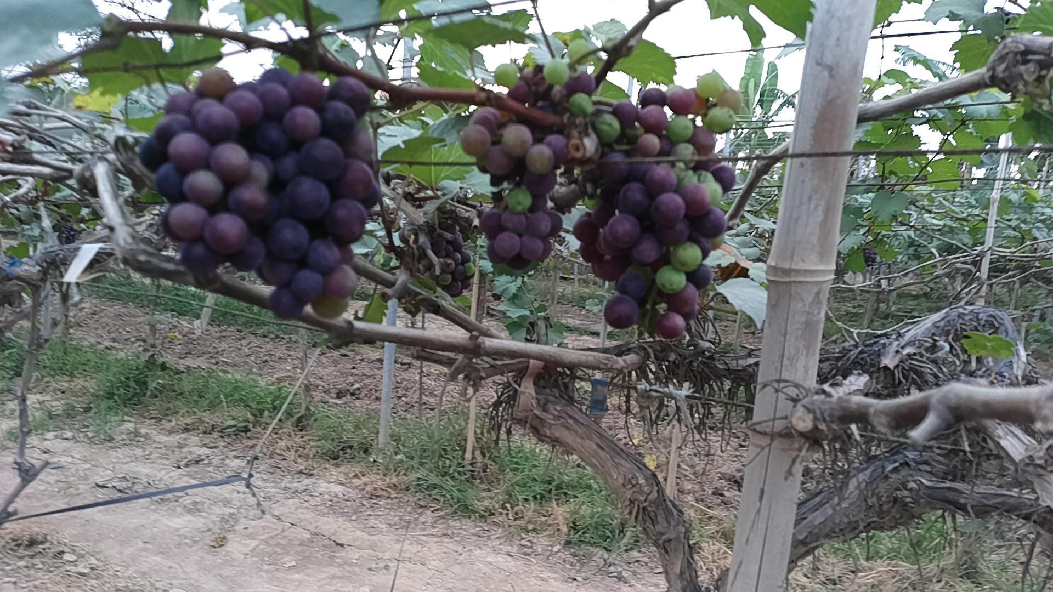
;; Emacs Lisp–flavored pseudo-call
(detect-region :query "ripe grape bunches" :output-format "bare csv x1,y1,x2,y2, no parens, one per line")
863,248,877,267
139,67,379,317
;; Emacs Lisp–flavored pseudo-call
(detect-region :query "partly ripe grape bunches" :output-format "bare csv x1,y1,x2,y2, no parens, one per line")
392,221,474,297
461,39,599,270
574,73,742,339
